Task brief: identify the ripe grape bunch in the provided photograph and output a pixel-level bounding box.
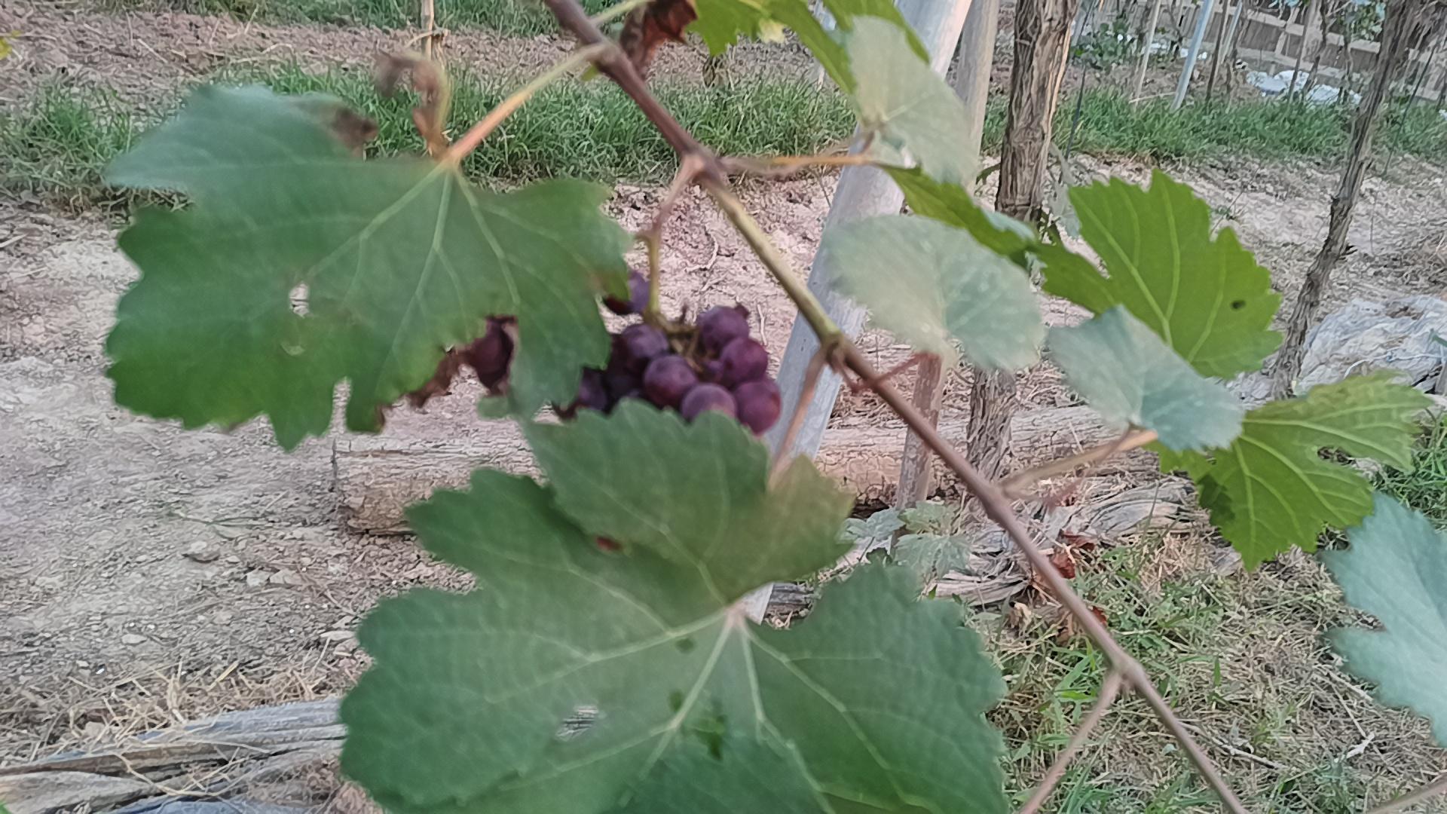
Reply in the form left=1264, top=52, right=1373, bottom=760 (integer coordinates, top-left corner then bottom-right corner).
left=465, top=263, right=782, bottom=435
